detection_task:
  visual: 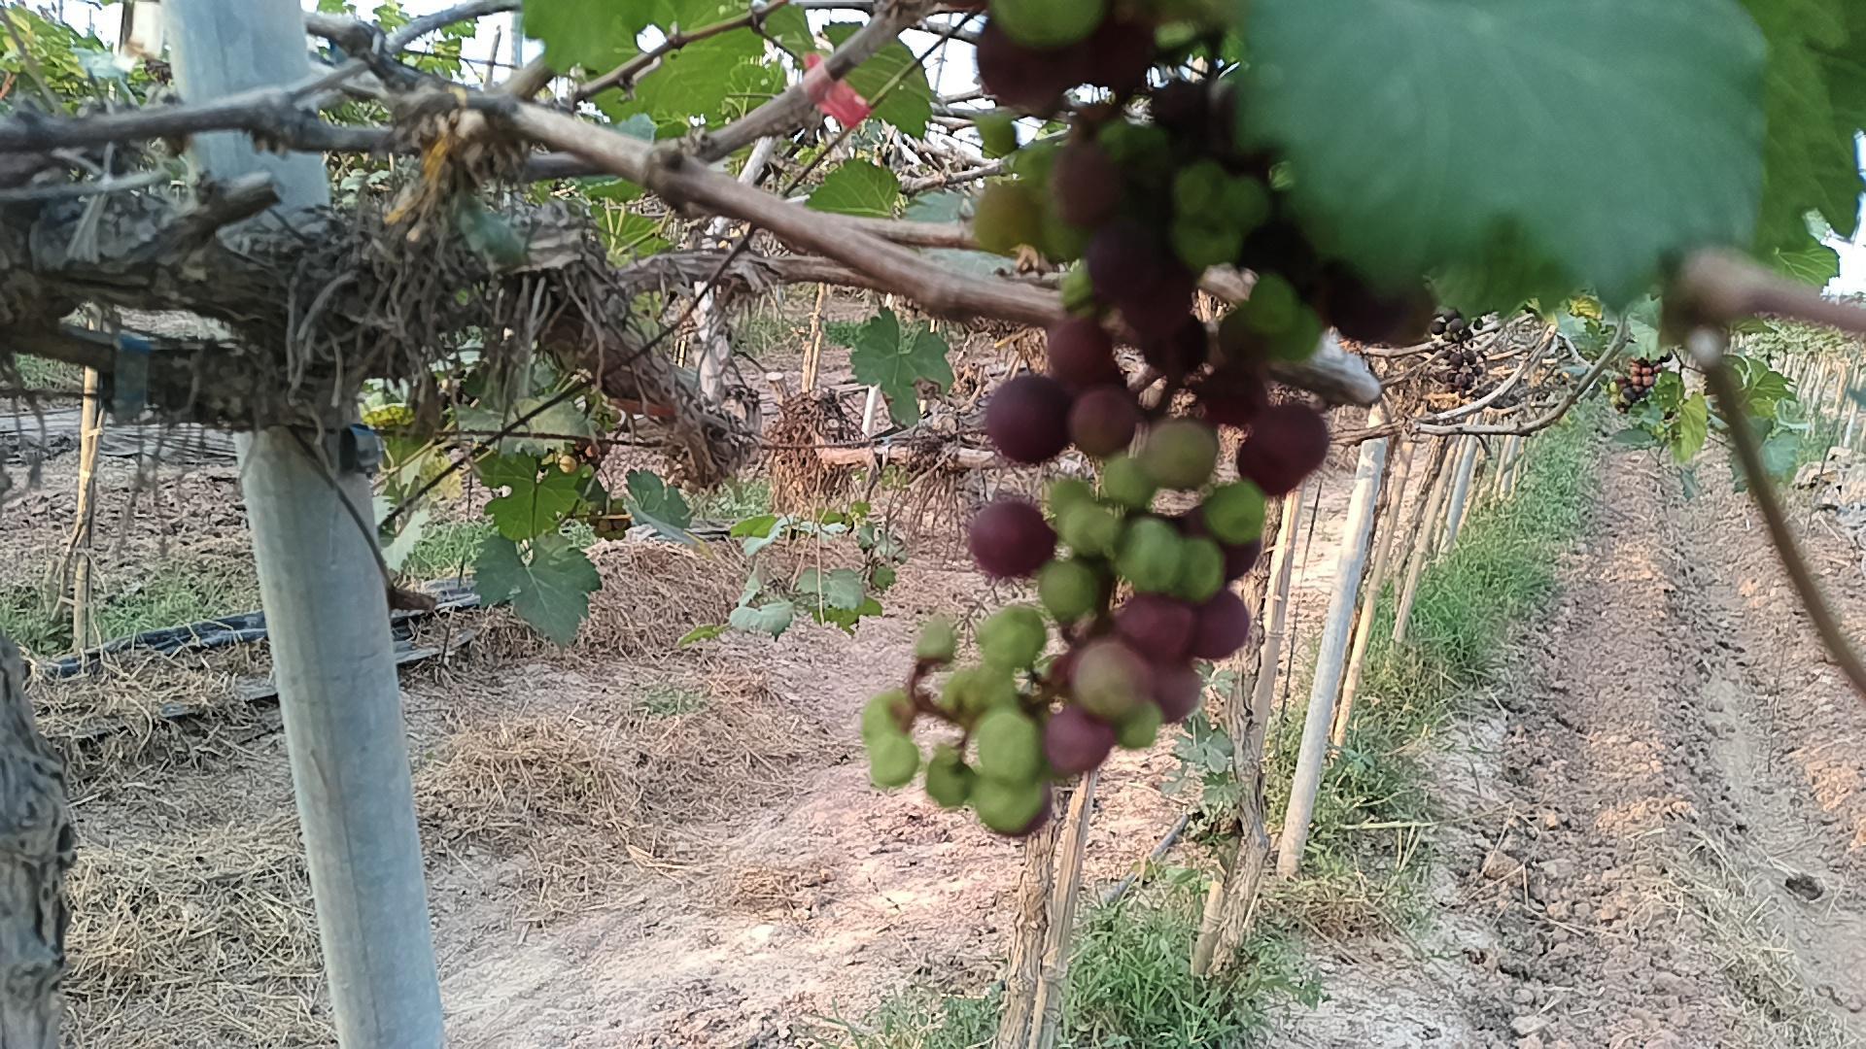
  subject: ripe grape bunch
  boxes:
[1427,312,1487,396]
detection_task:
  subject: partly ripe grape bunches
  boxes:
[1614,356,1665,412]
[863,0,1434,835]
